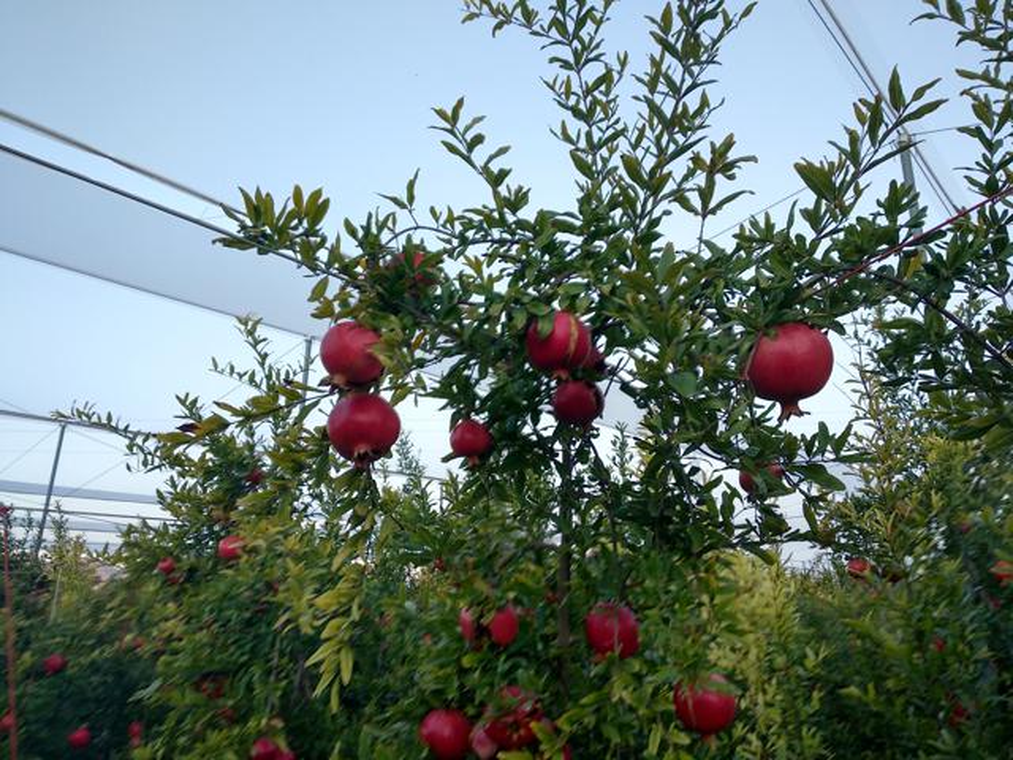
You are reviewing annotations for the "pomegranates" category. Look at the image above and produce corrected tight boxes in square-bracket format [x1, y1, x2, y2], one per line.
[584, 603, 639, 662]
[43, 654, 65, 678]
[326, 391, 400, 465]
[388, 252, 432, 283]
[673, 682, 738, 741]
[0, 712, 16, 731]
[217, 537, 242, 560]
[847, 557, 869, 579]
[484, 686, 556, 747]
[524, 310, 592, 380]
[421, 708, 473, 760]
[250, 736, 293, 760]
[554, 378, 605, 435]
[459, 606, 476, 640]
[320, 320, 385, 394]
[157, 556, 177, 573]
[486, 603, 519, 644]
[469, 722, 500, 760]
[747, 321, 833, 420]
[66, 728, 92, 750]
[738, 464, 783, 494]
[450, 420, 494, 469]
